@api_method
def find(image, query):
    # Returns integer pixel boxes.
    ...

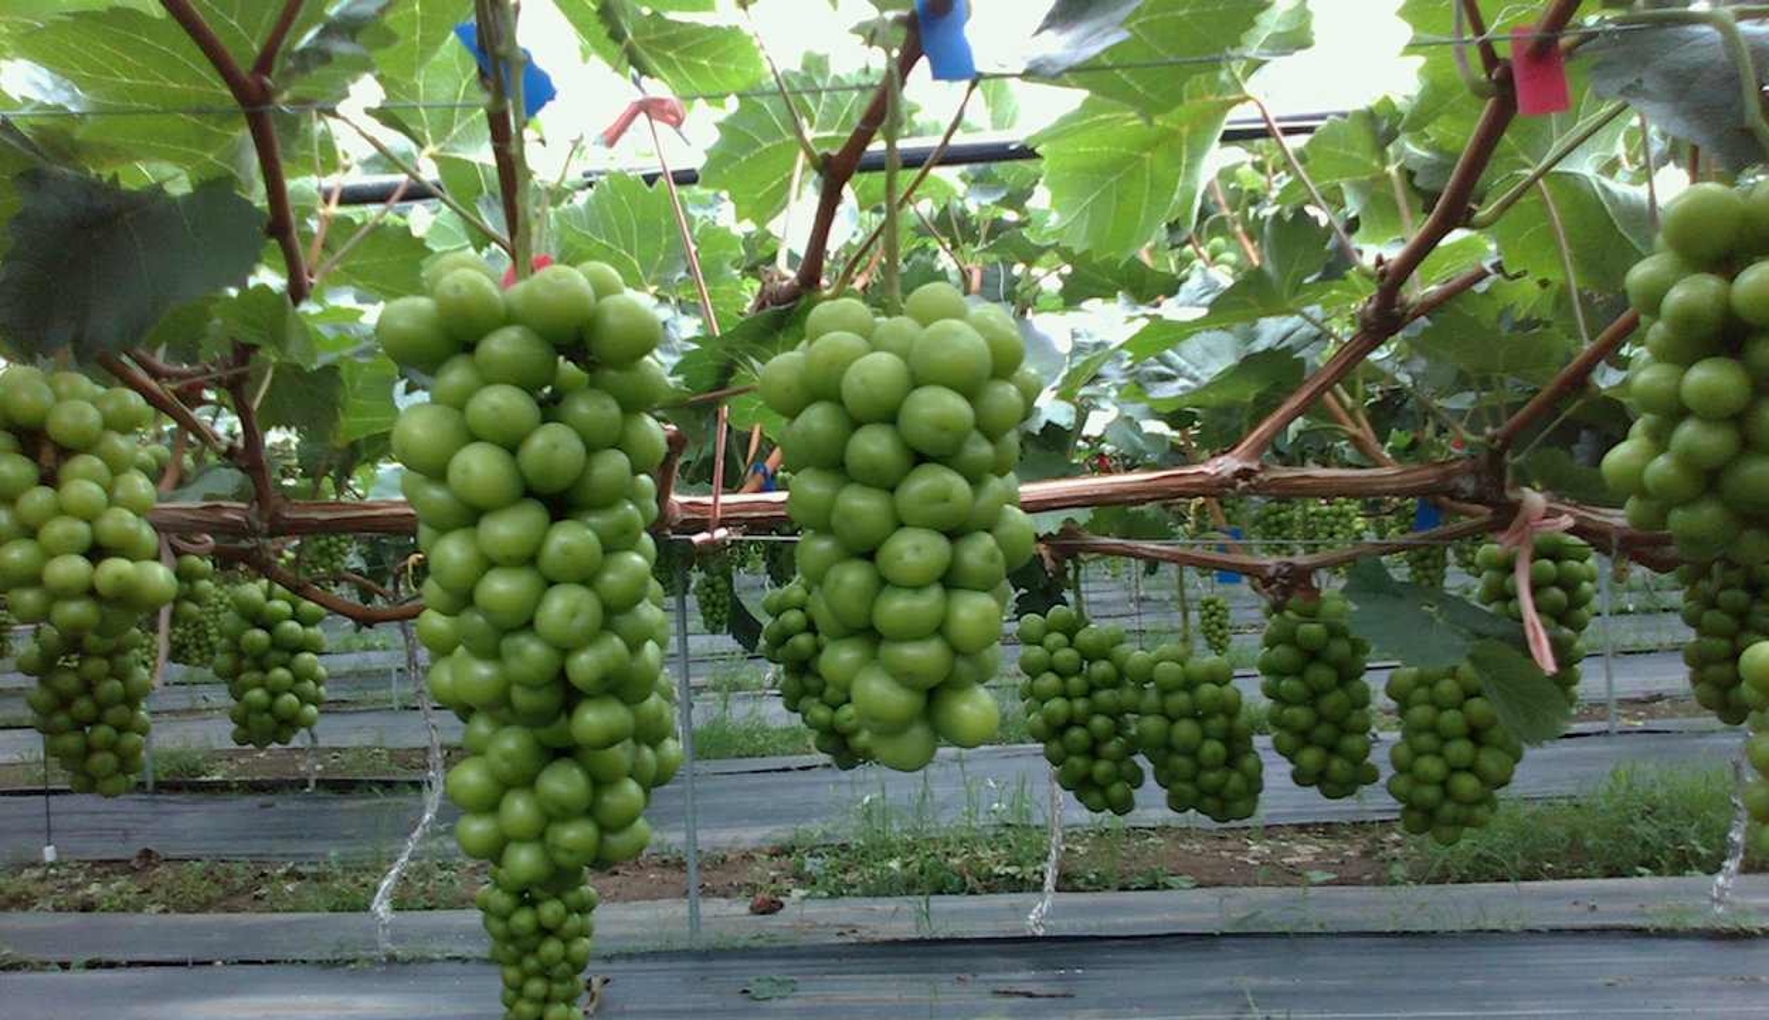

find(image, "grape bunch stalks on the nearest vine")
[883,57,902,320]
[498,0,532,283]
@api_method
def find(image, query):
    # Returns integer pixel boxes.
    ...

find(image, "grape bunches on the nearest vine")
[445,669,683,894]
[757,280,1043,773]
[373,254,669,751]
[1,363,179,640]
[1599,178,1766,565]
